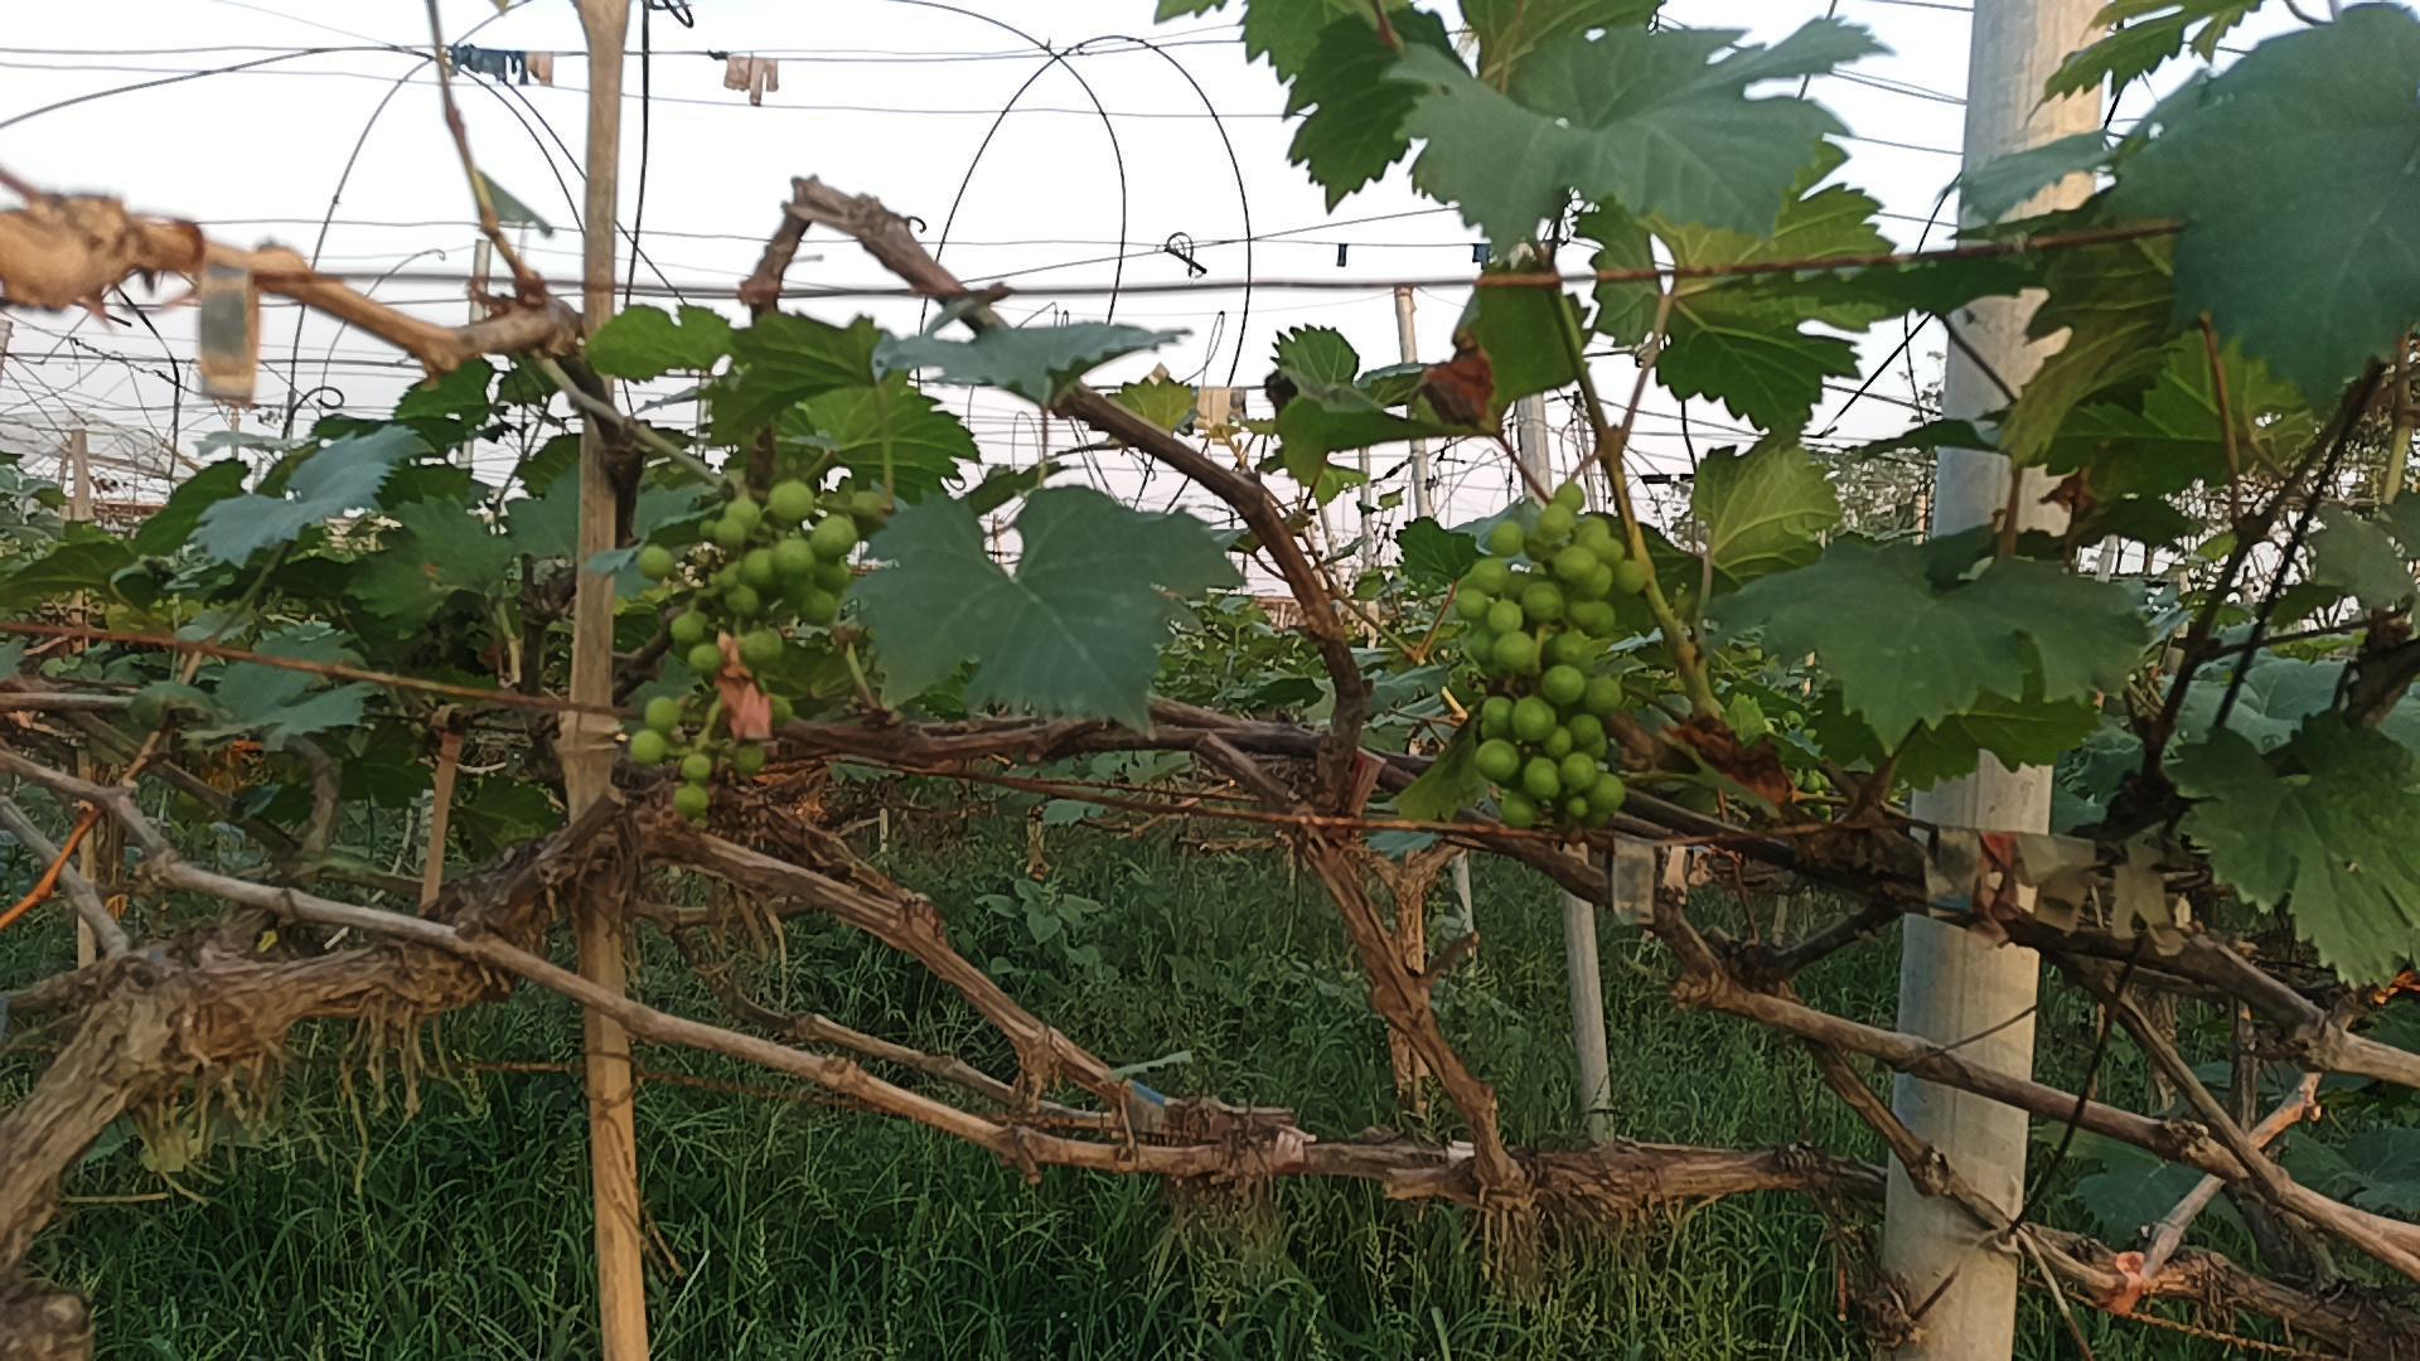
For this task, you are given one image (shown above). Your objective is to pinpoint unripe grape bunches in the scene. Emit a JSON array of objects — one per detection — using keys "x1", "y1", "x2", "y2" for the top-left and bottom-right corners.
[
  {"x1": 1457, "y1": 485, "x2": 1650, "y2": 827},
  {"x1": 628, "y1": 478, "x2": 891, "y2": 820}
]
